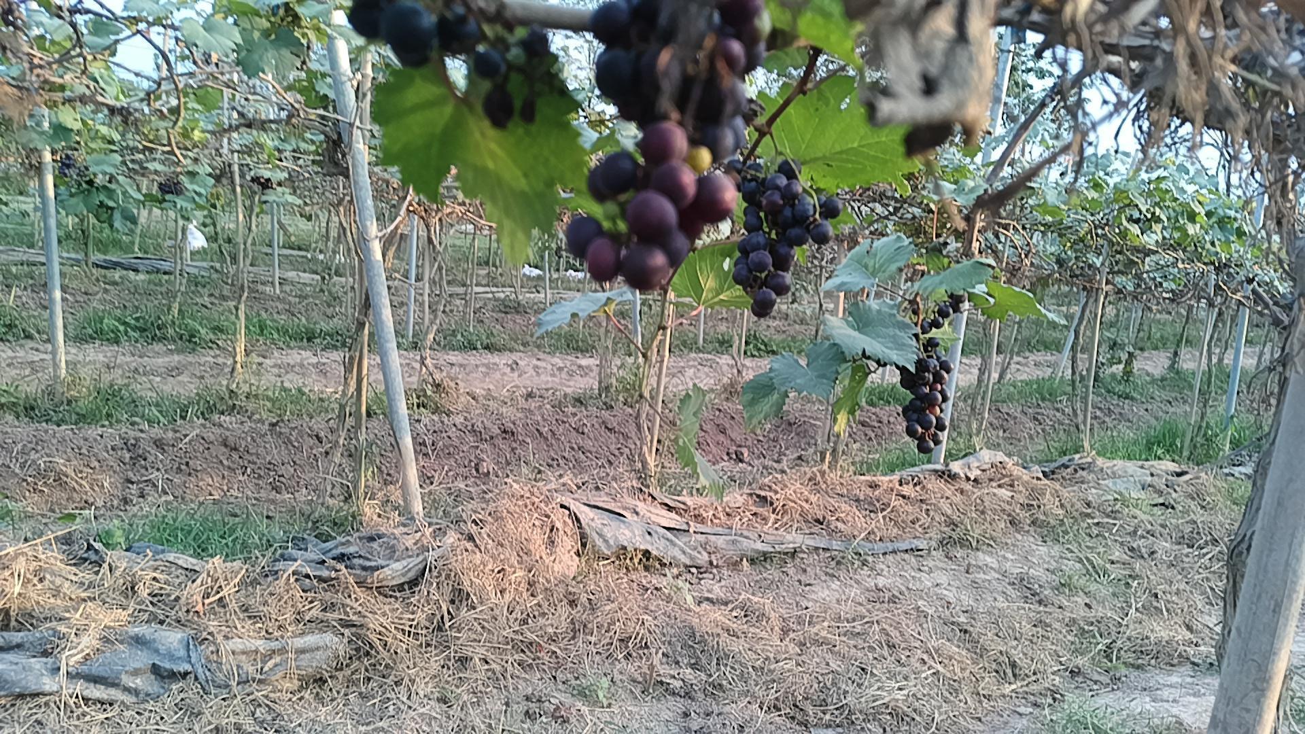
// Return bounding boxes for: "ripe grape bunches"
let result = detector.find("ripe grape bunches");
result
[898,294,967,453]
[347,0,553,128]
[731,160,842,317]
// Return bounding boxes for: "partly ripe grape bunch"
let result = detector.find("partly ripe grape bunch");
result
[566,0,769,290]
